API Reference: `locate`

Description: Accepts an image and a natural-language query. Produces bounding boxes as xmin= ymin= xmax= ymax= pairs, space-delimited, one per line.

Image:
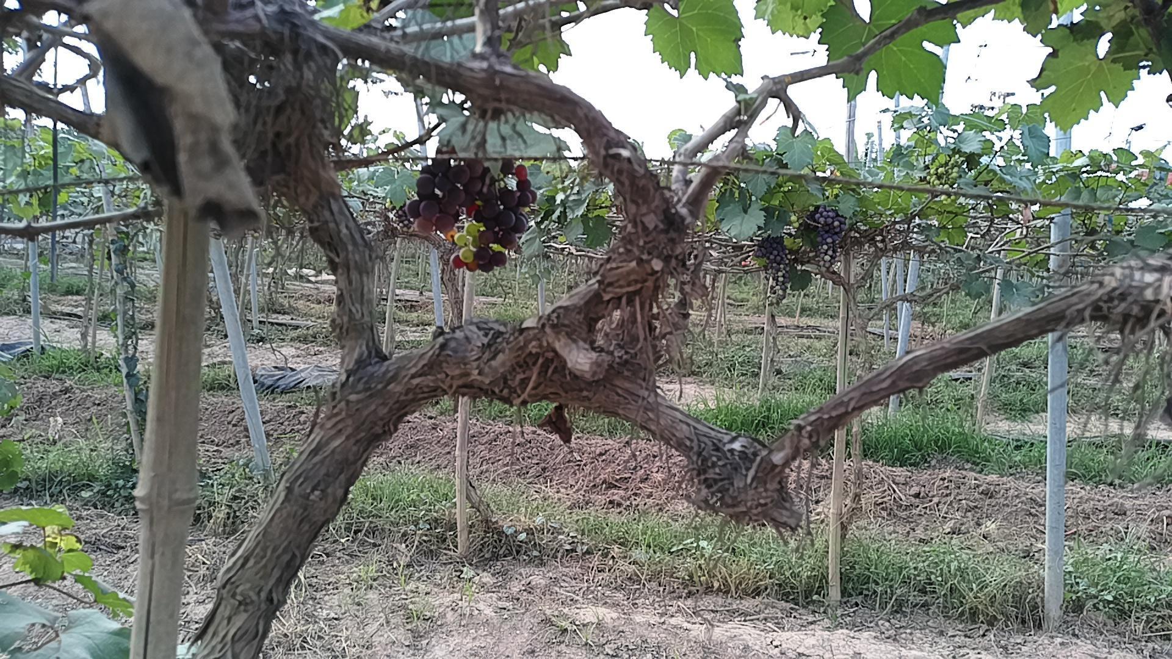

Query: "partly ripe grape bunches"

xmin=404 ymin=158 xmax=537 ymax=272
xmin=805 ymin=204 xmax=847 ymax=268
xmin=754 ymin=236 xmax=792 ymax=305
